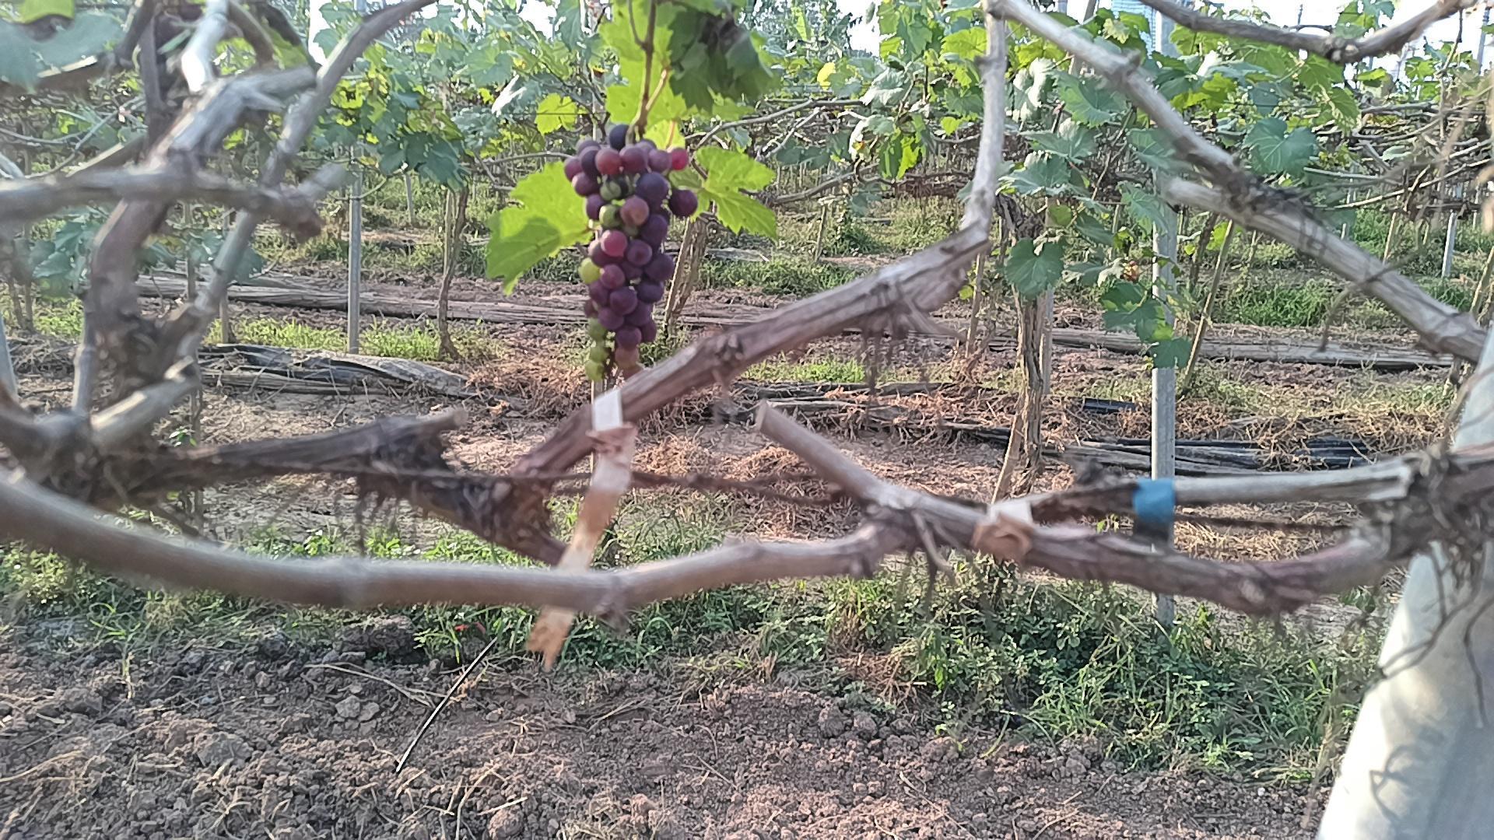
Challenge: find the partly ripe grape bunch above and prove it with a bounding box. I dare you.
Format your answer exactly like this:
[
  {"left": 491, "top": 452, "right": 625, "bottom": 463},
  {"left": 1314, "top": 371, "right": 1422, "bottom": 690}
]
[{"left": 564, "top": 124, "right": 698, "bottom": 381}]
